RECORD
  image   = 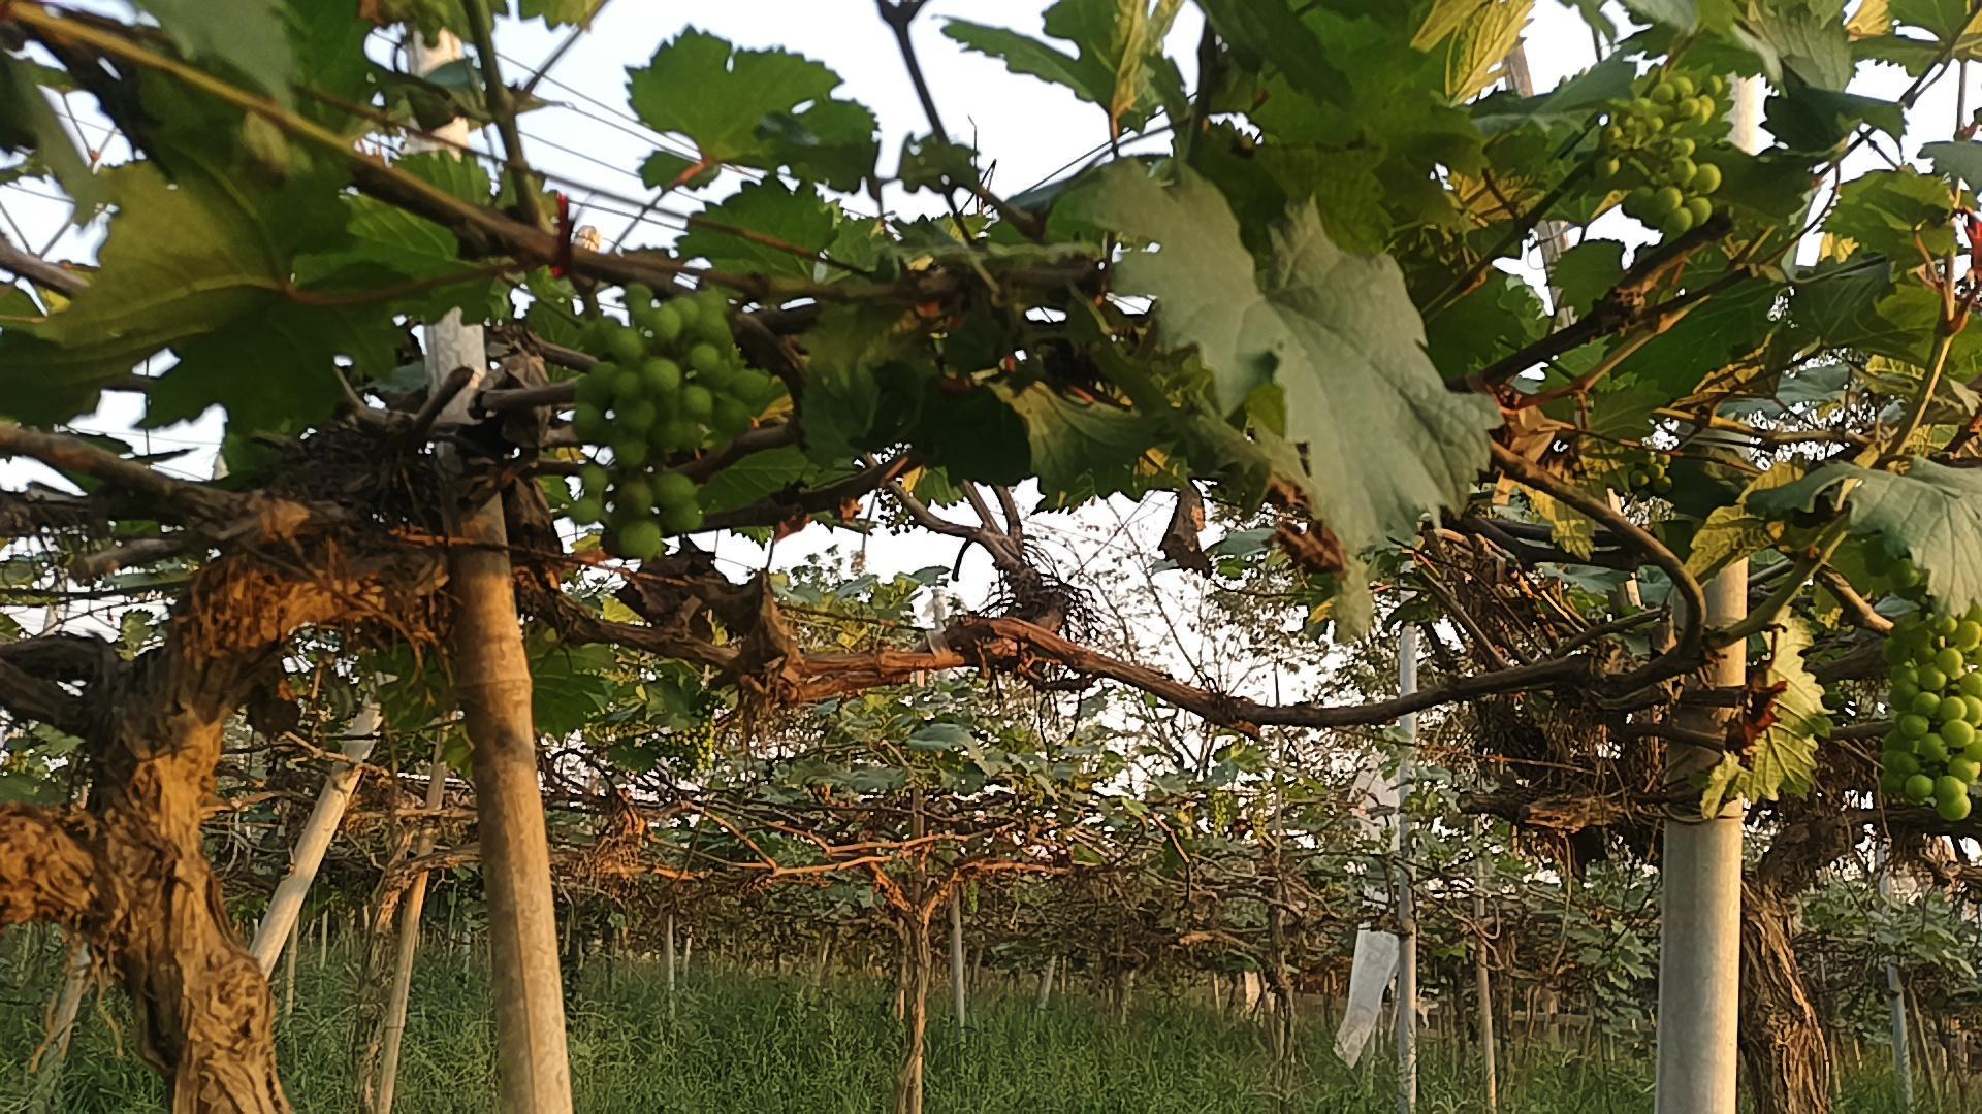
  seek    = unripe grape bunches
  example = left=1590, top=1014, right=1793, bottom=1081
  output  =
left=573, top=285, right=780, bottom=556
left=1882, top=604, right=1981, bottom=820
left=1574, top=68, right=1732, bottom=238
